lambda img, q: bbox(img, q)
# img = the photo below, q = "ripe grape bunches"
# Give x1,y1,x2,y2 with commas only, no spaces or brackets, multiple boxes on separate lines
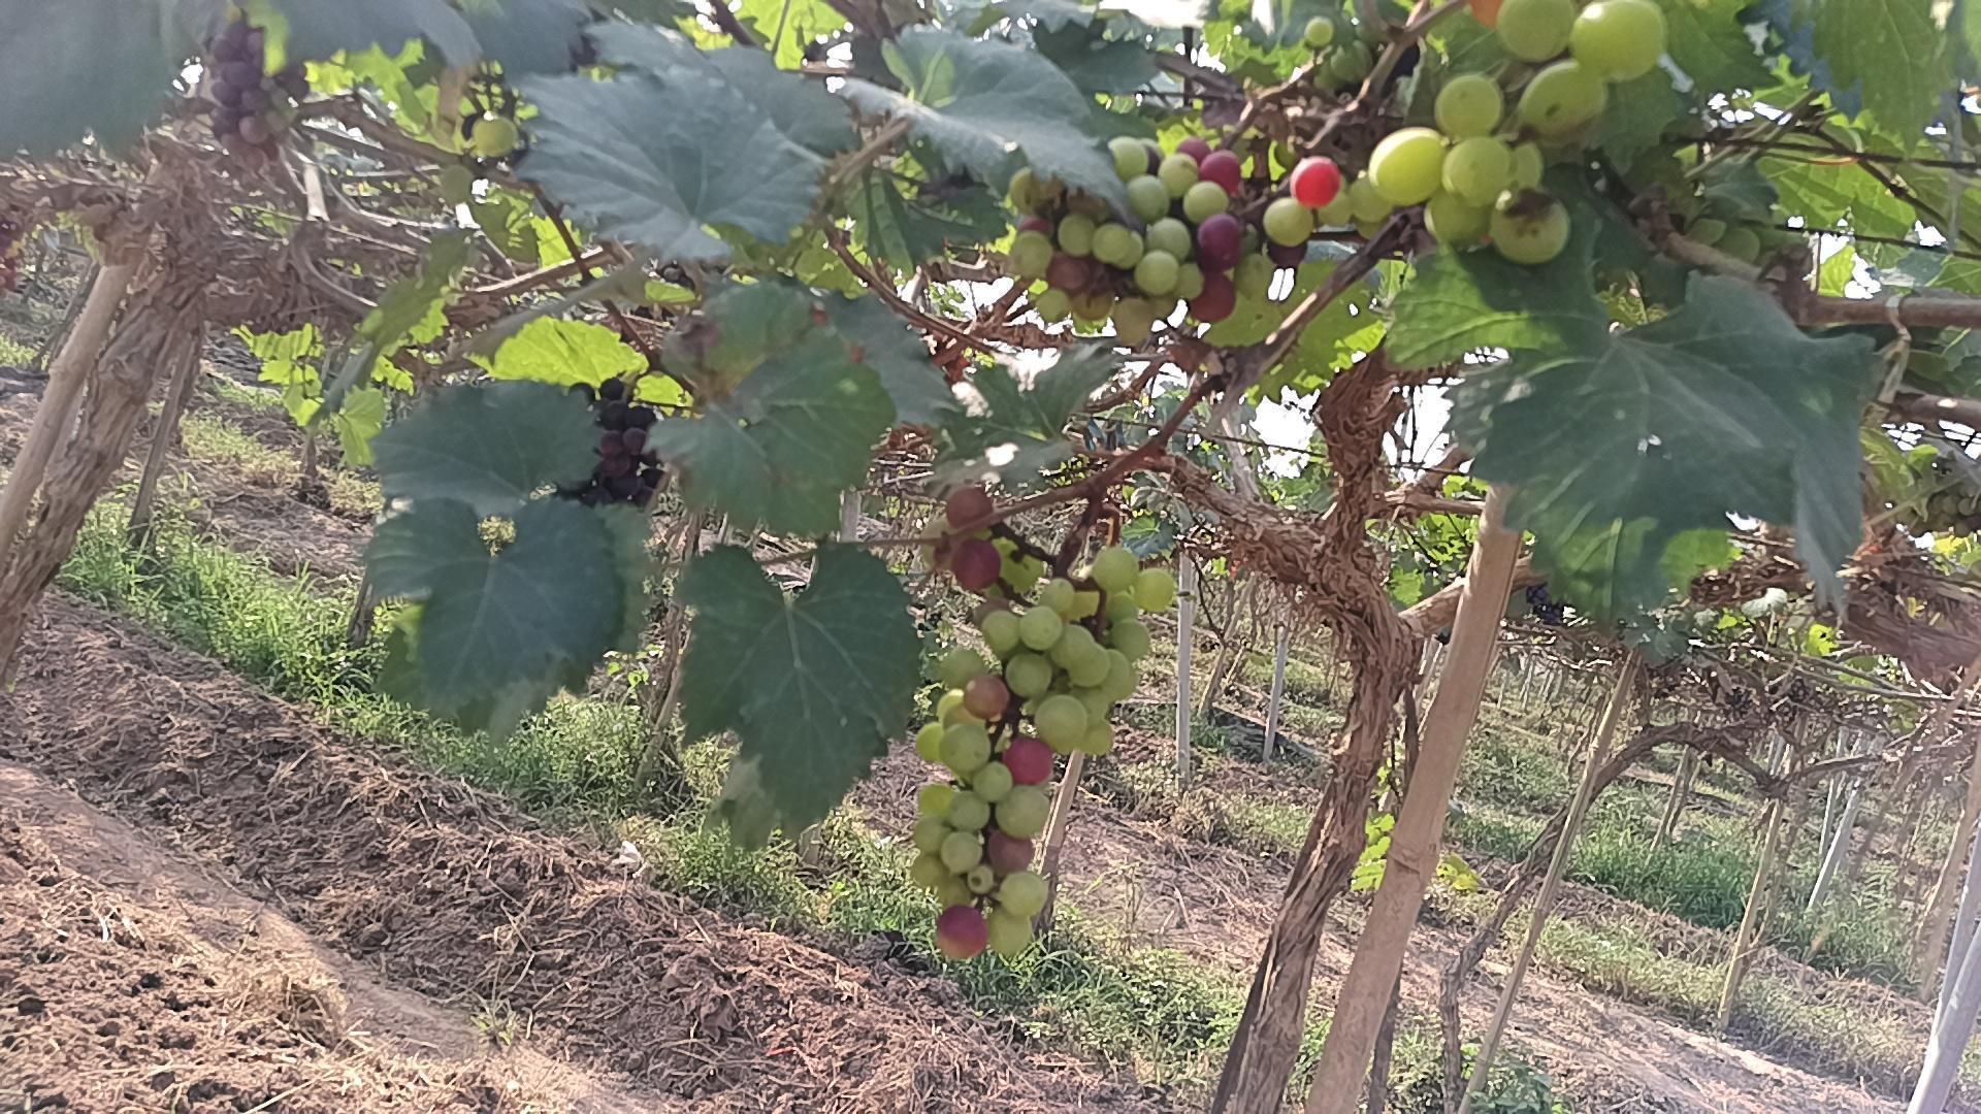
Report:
1524,584,1566,625
558,378,663,504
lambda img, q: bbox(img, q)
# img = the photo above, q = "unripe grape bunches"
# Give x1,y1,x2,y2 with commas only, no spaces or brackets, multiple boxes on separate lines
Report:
1684,204,1807,264
1317,0,1665,264
1911,483,1980,535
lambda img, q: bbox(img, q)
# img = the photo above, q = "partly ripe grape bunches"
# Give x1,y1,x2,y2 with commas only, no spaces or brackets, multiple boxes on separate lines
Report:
1007,138,1344,346
912,487,1174,959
